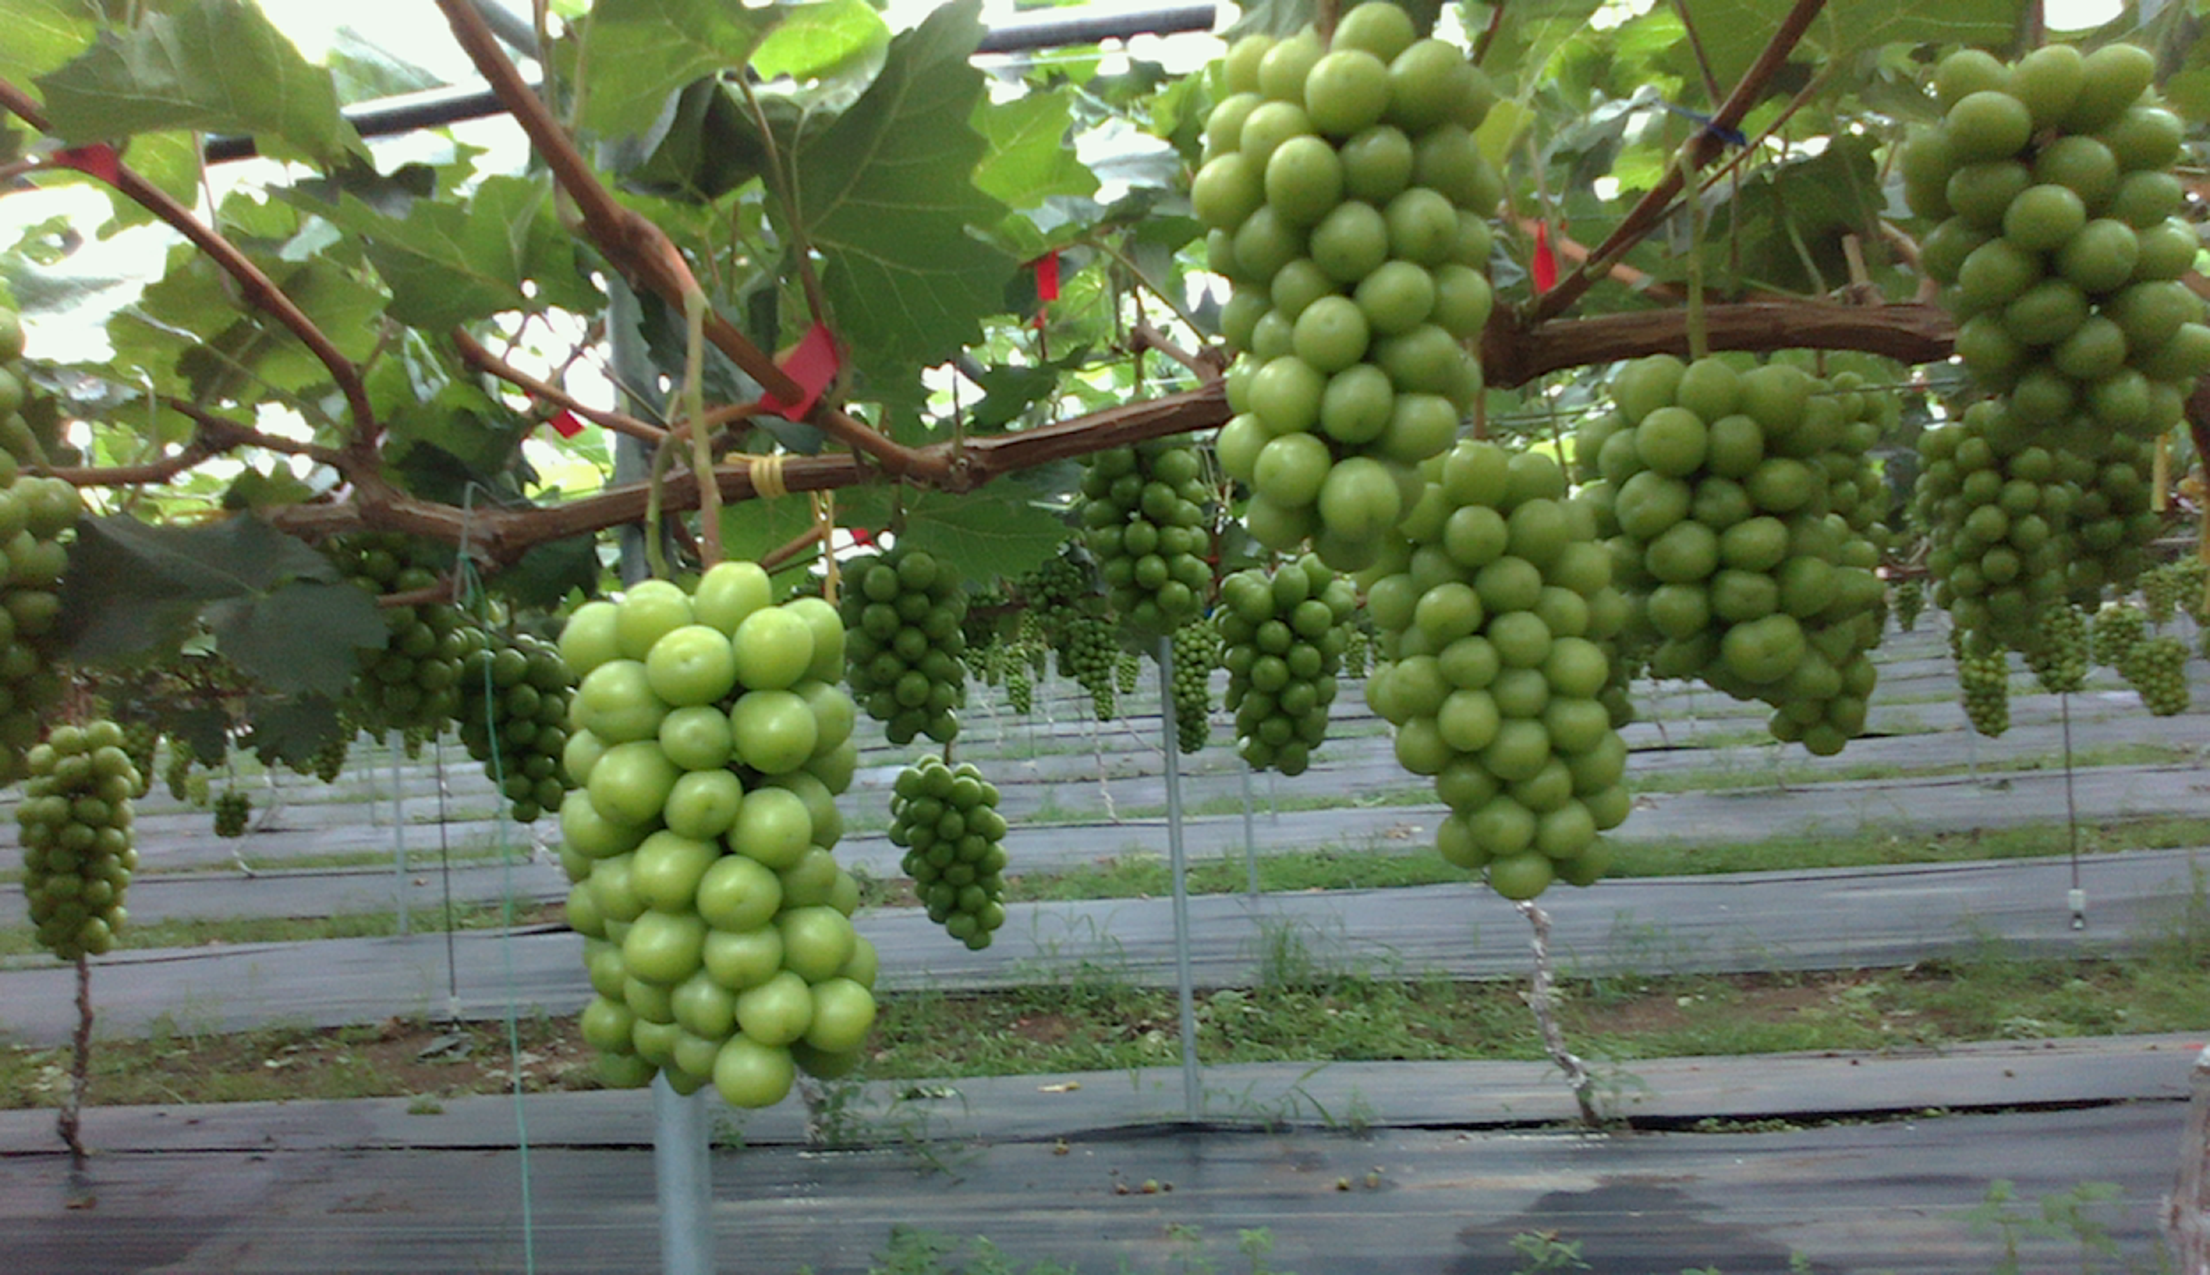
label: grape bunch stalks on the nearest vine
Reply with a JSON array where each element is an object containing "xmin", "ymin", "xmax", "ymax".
[
  {"xmin": 2033, "ymin": 0, "xmax": 2045, "ymax": 42},
  {"xmin": 645, "ymin": 225, "xmax": 721, "ymax": 568},
  {"xmin": 1475, "ymin": 400, "xmax": 1486, "ymax": 441},
  {"xmin": 1682, "ymin": 149, "xmax": 1707, "ymax": 358},
  {"xmin": 1314, "ymin": 0, "xmax": 1335, "ymax": 42}
]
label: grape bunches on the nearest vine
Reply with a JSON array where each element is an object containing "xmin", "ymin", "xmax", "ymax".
[
  {"xmin": 1353, "ymin": 443, "xmax": 1634, "ymax": 901},
  {"xmin": 1572, "ymin": 352, "xmax": 1882, "ymax": 703},
  {"xmin": 1192, "ymin": 0, "xmax": 1500, "ymax": 574},
  {"xmin": 556, "ymin": 560, "xmax": 875, "ymax": 1107},
  {"xmin": 1893, "ymin": 44, "xmax": 2208, "ymax": 457}
]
